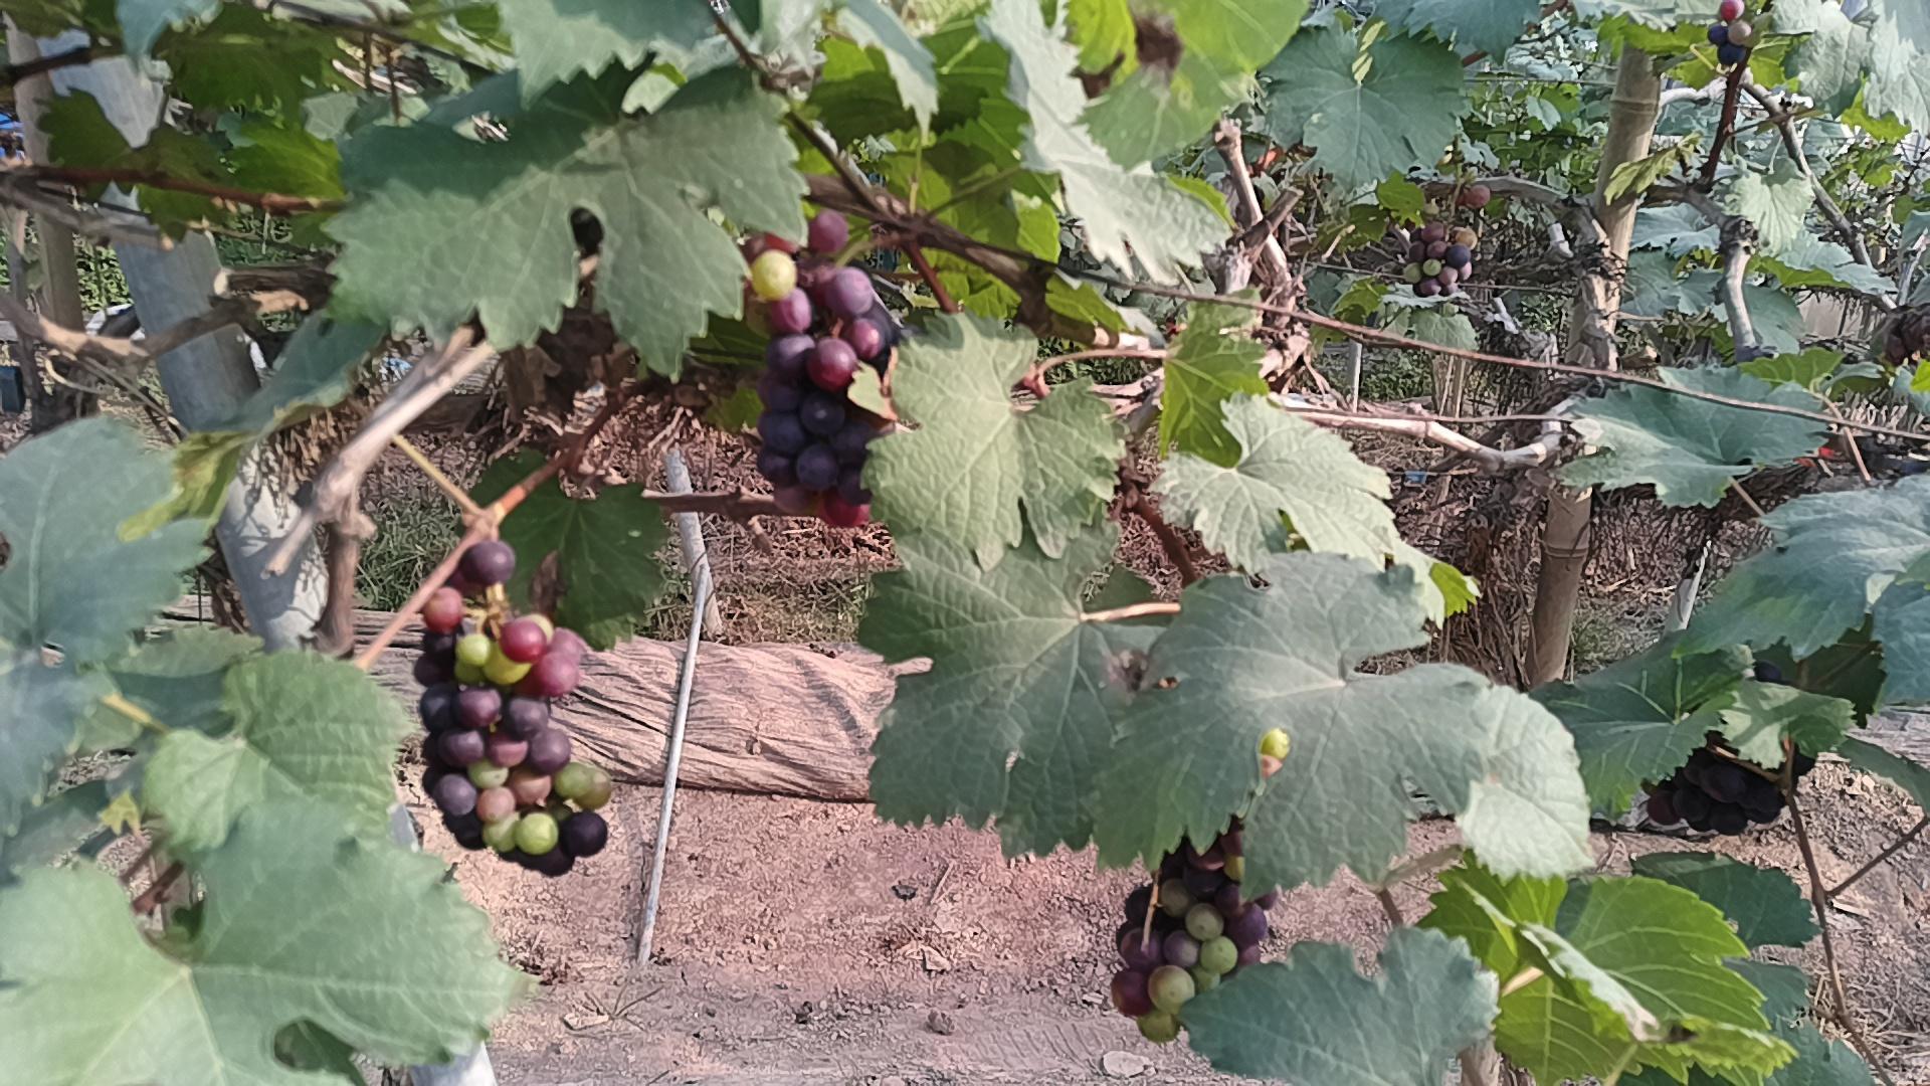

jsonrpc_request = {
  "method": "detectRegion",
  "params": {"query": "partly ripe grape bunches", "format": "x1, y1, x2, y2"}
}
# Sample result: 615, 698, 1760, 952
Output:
414, 540, 610, 875
737, 209, 900, 526
1111, 730, 1294, 1042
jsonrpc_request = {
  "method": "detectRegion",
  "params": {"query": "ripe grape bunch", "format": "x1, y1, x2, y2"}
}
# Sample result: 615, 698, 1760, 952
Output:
1645, 661, 1816, 837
